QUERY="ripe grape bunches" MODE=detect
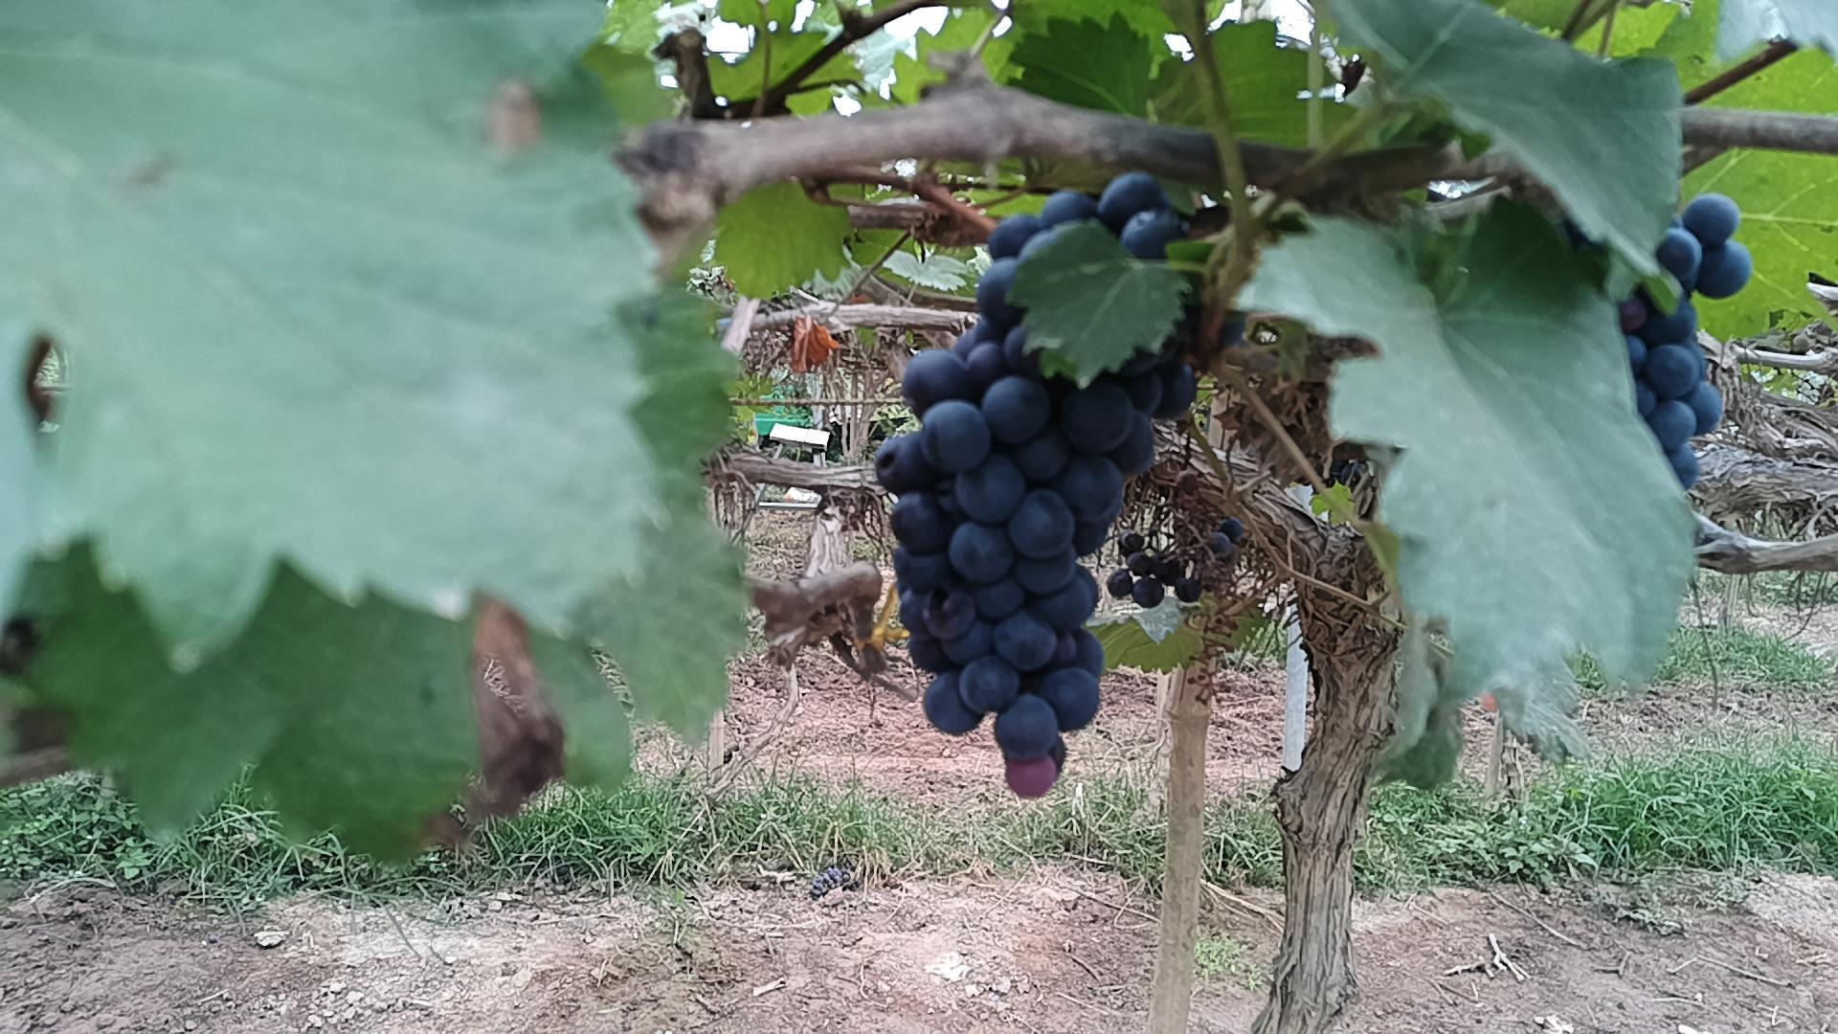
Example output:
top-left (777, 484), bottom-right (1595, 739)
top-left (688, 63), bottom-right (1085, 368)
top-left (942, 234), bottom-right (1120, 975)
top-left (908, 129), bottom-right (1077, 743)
top-left (1620, 194), bottom-right (1750, 488)
top-left (1106, 518), bottom-right (1244, 612)
top-left (876, 174), bottom-right (1196, 798)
